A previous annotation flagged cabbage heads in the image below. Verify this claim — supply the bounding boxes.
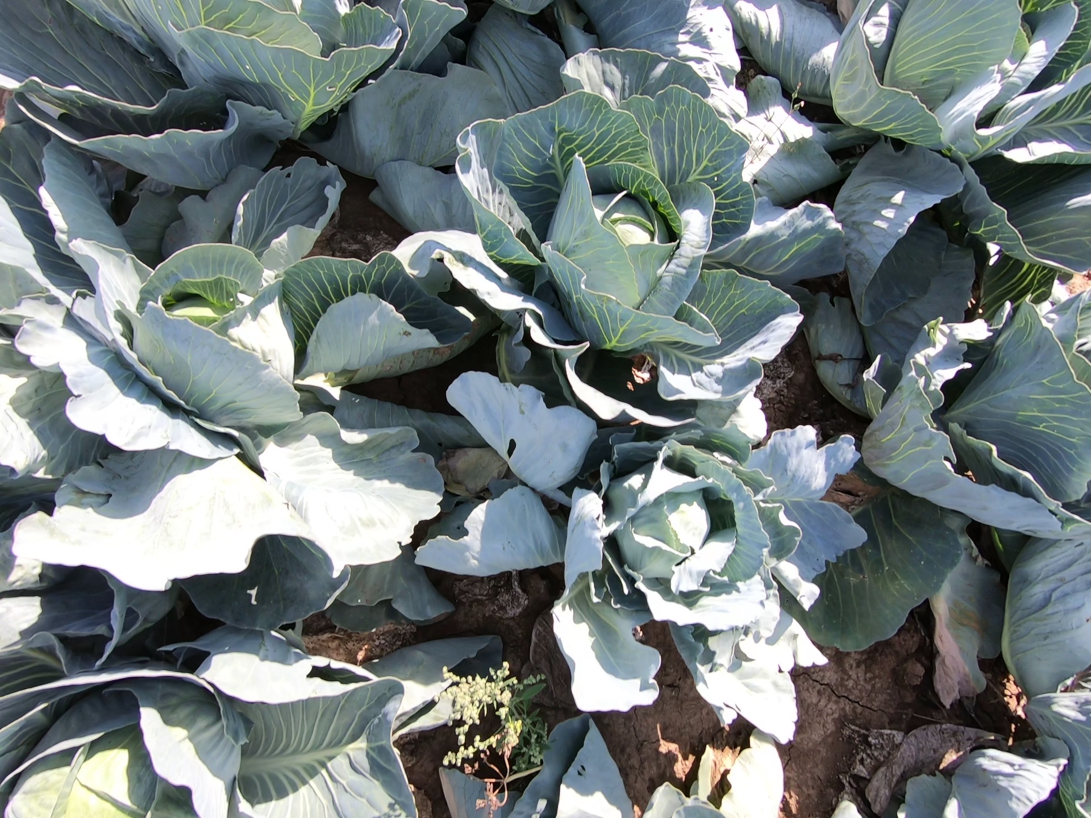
[630,473,711,562]
[577,195,669,307]
[163,294,292,410]
[2,678,232,816]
